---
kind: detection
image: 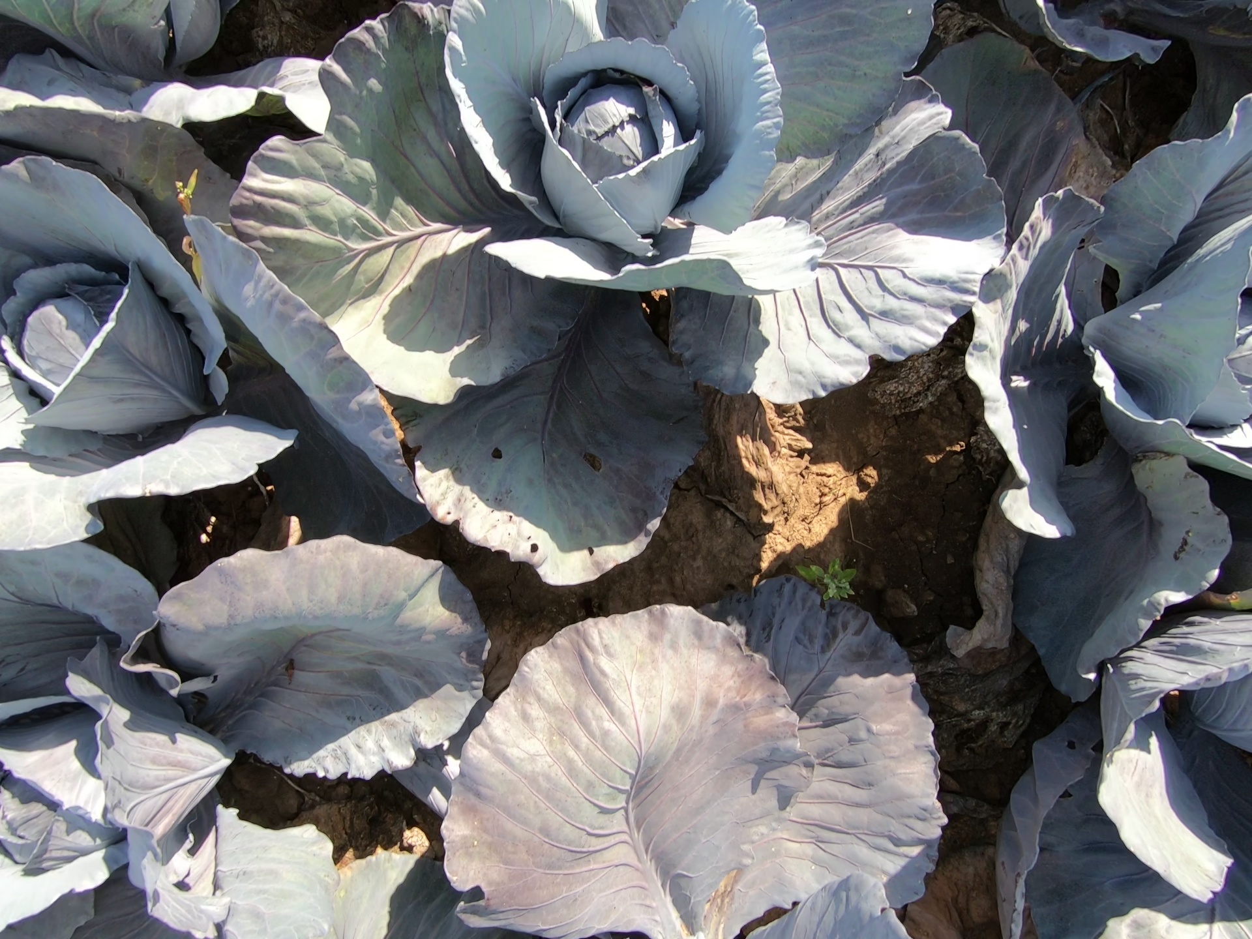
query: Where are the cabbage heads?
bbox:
[3,711,147,867]
[1161,287,1247,419]
[18,290,173,421]
[559,82,680,222]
